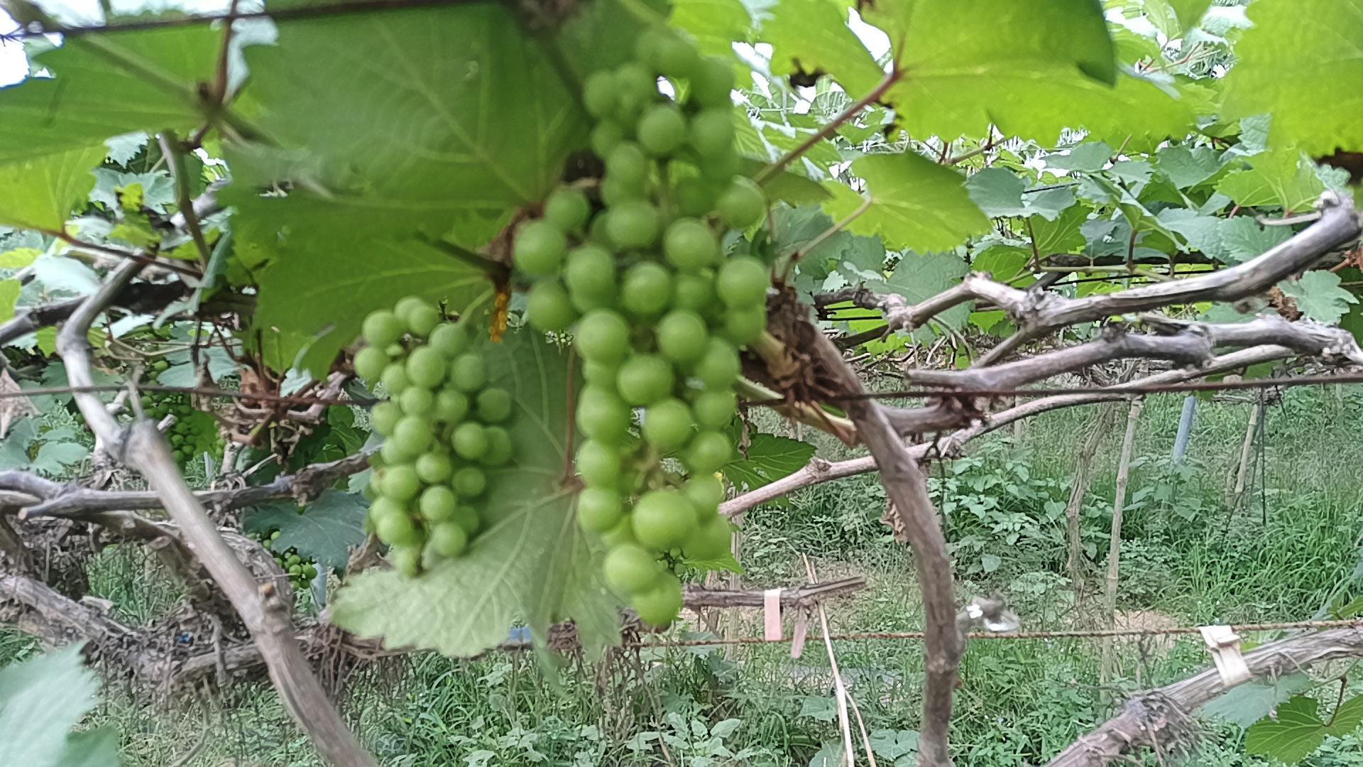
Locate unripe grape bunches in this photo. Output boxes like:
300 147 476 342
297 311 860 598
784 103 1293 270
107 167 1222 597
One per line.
138 359 204 472
250 527 318 592
513 24 767 624
354 293 512 575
